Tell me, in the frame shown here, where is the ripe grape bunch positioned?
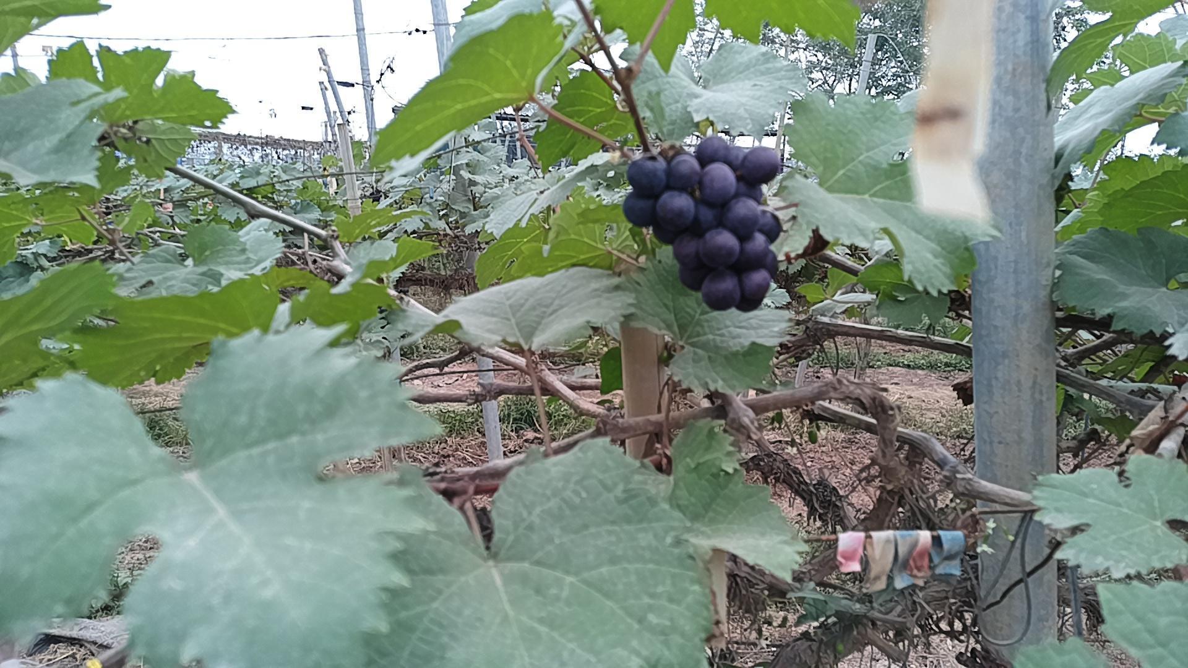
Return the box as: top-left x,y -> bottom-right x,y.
624,135 -> 781,311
